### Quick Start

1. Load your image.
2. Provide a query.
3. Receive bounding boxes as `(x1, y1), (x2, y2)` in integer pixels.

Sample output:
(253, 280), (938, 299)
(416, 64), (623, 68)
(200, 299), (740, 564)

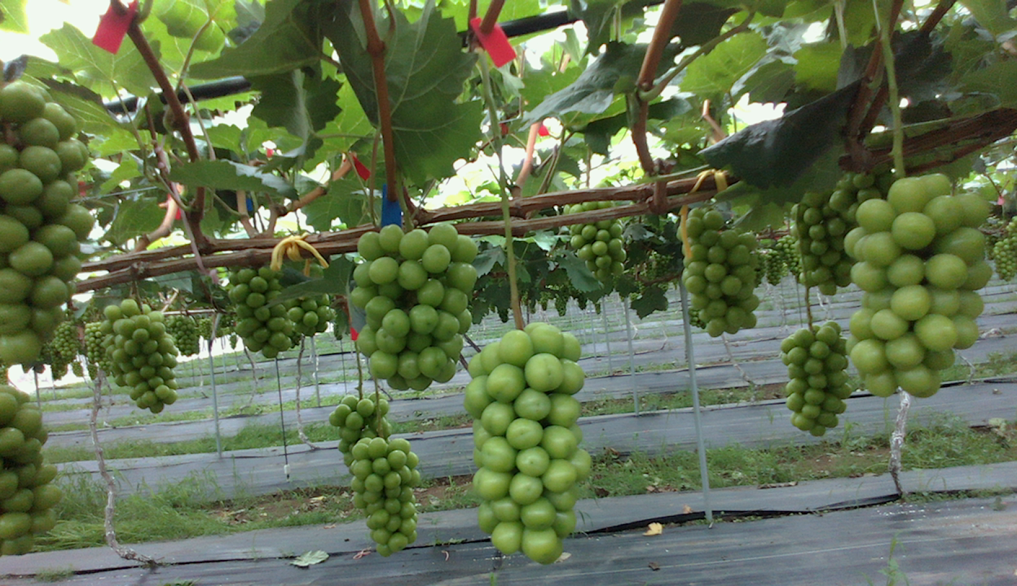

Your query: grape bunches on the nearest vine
(0, 81), (97, 367)
(843, 174), (991, 396)
(463, 321), (592, 564)
(352, 223), (478, 390)
(0, 386), (59, 557)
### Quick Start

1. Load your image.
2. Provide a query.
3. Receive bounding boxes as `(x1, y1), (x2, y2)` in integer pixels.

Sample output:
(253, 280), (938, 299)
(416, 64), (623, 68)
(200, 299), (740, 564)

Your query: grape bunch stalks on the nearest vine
(876, 1), (905, 176)
(474, 49), (522, 328)
(394, 170), (413, 230)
